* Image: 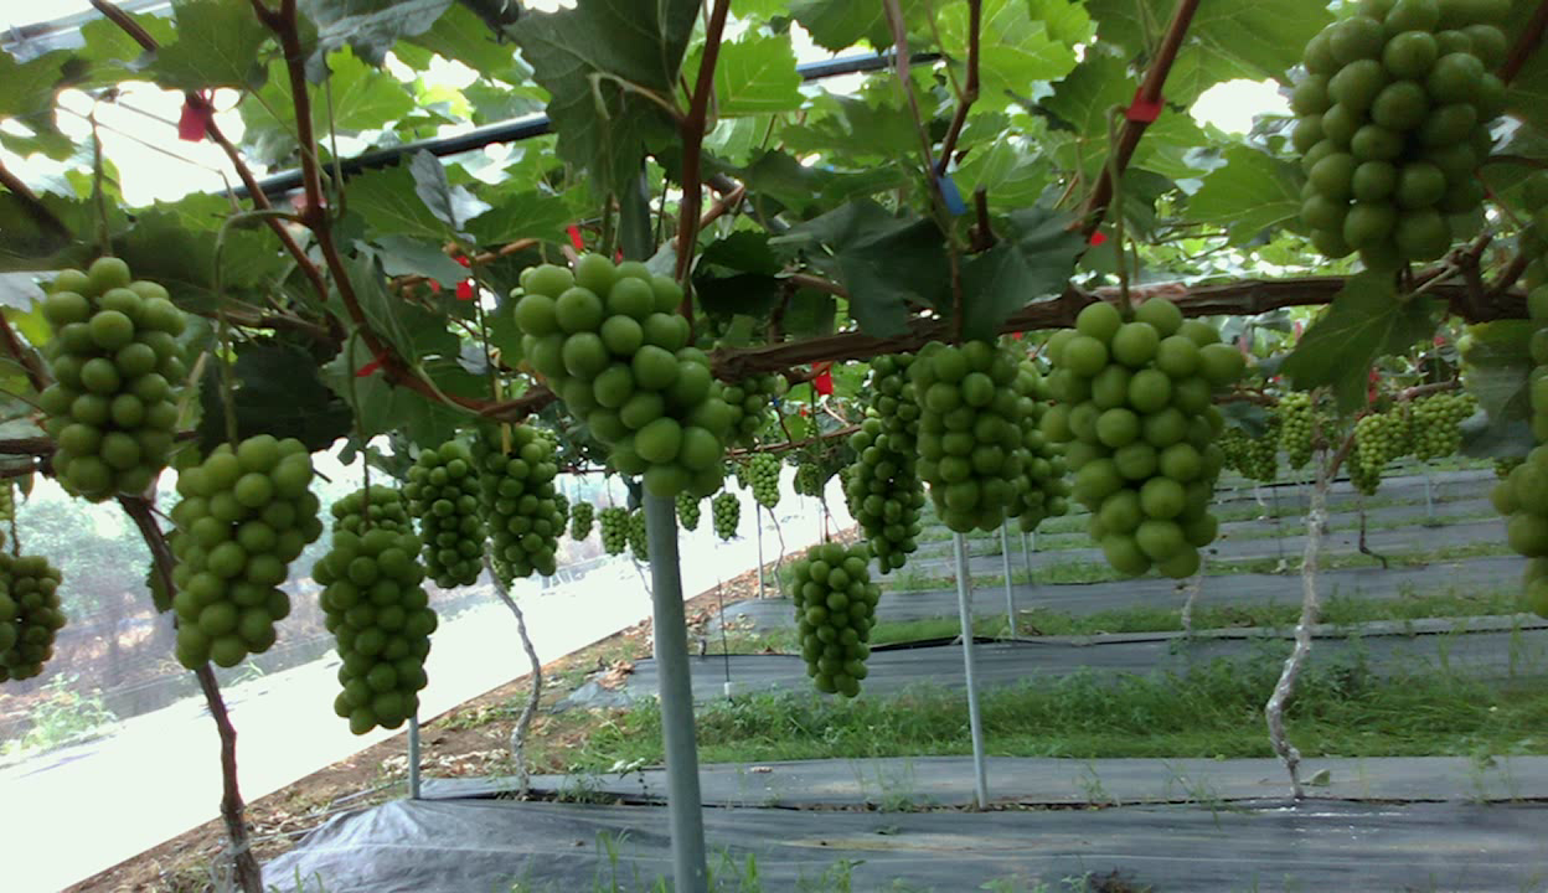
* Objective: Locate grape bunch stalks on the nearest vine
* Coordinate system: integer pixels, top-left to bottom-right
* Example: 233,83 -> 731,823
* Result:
1105,103 -> 1134,321
88,110 -> 112,254
346,325 -> 391,531
588,72 -> 685,257
210,211 -> 288,450
949,252 -> 961,345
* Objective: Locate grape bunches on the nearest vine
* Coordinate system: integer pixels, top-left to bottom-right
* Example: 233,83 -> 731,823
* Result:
1289,0 -> 1516,273
908,340 -> 1023,536
38,257 -> 190,502
1038,296 -> 1248,580
170,434 -> 321,675
313,530 -> 439,734
514,255 -> 733,502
